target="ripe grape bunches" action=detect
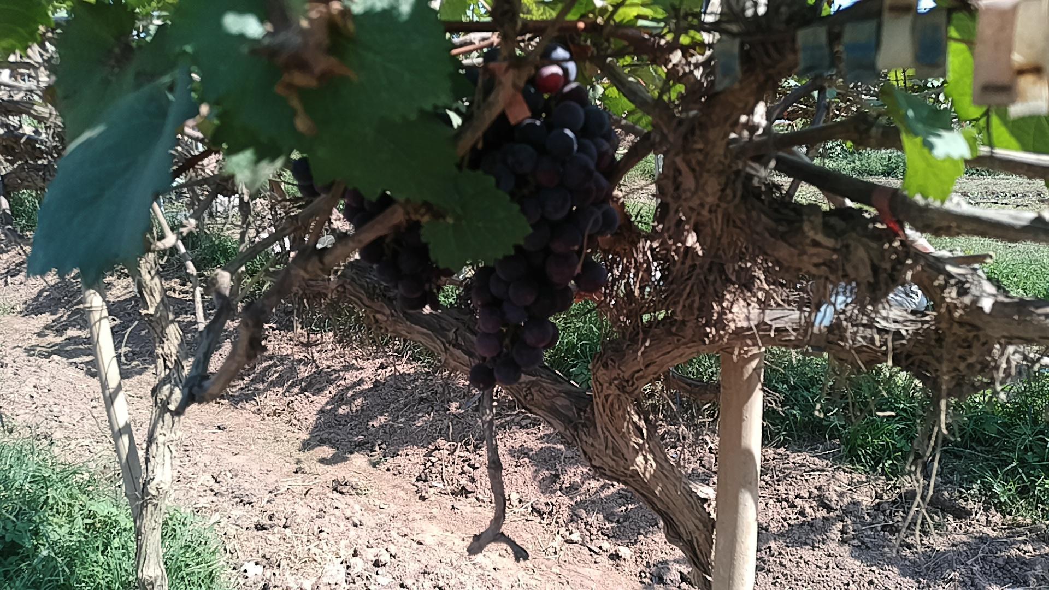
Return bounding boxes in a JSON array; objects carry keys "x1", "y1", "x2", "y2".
[
  {"x1": 291, "y1": 157, "x2": 450, "y2": 311},
  {"x1": 462, "y1": 42, "x2": 618, "y2": 389}
]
